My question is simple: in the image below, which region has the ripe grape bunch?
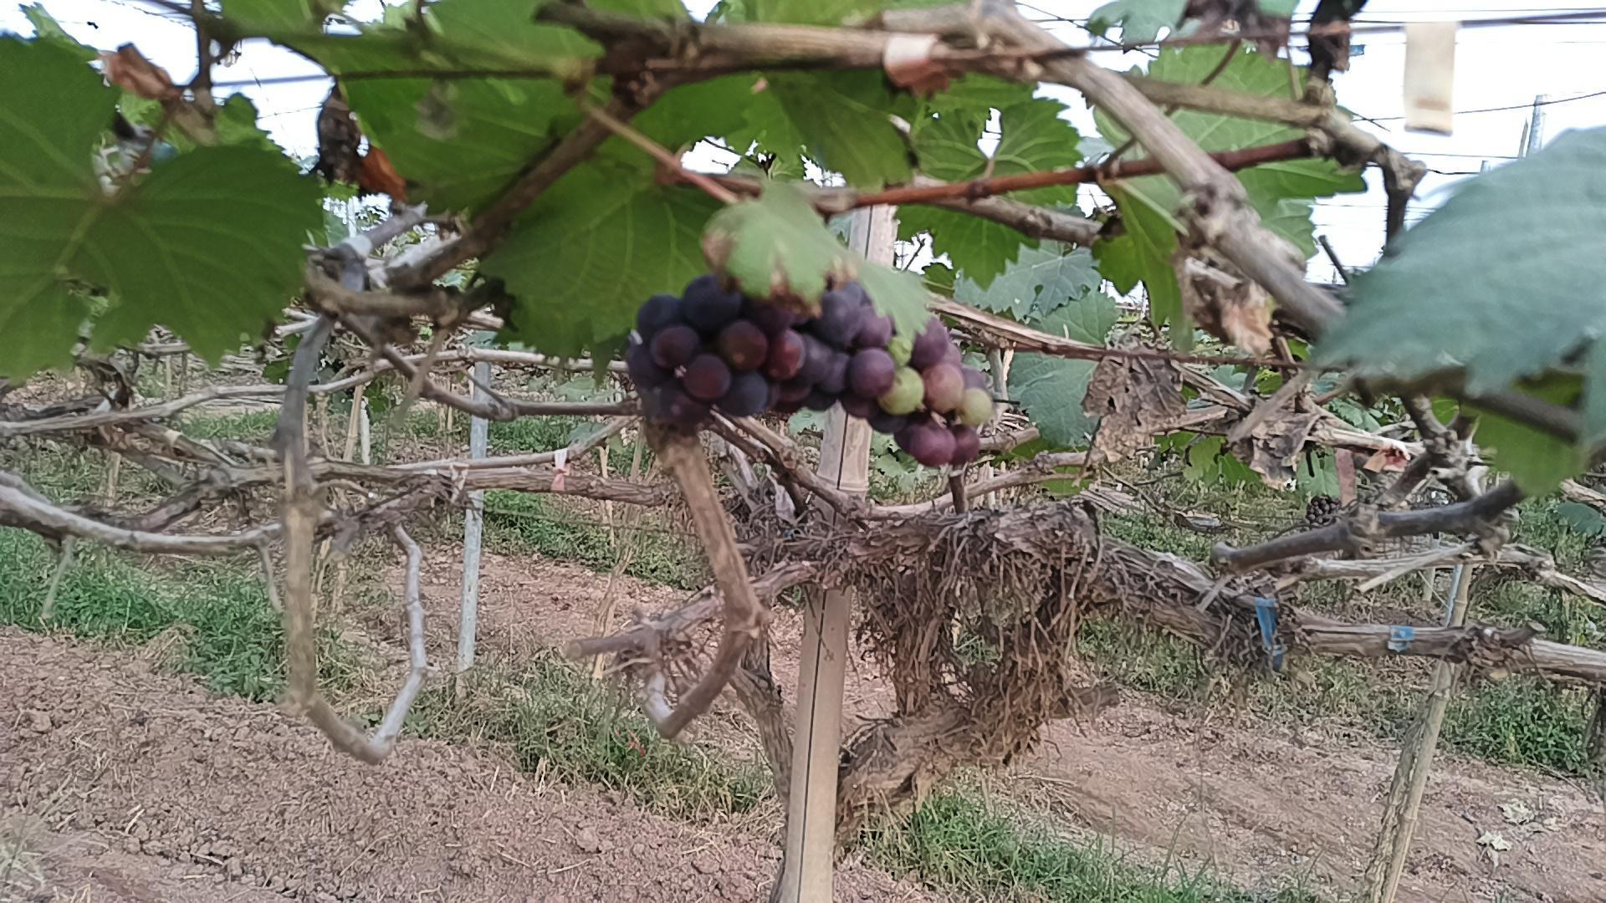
[1303,494,1341,528]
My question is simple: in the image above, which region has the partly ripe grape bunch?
[626,275,994,467]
